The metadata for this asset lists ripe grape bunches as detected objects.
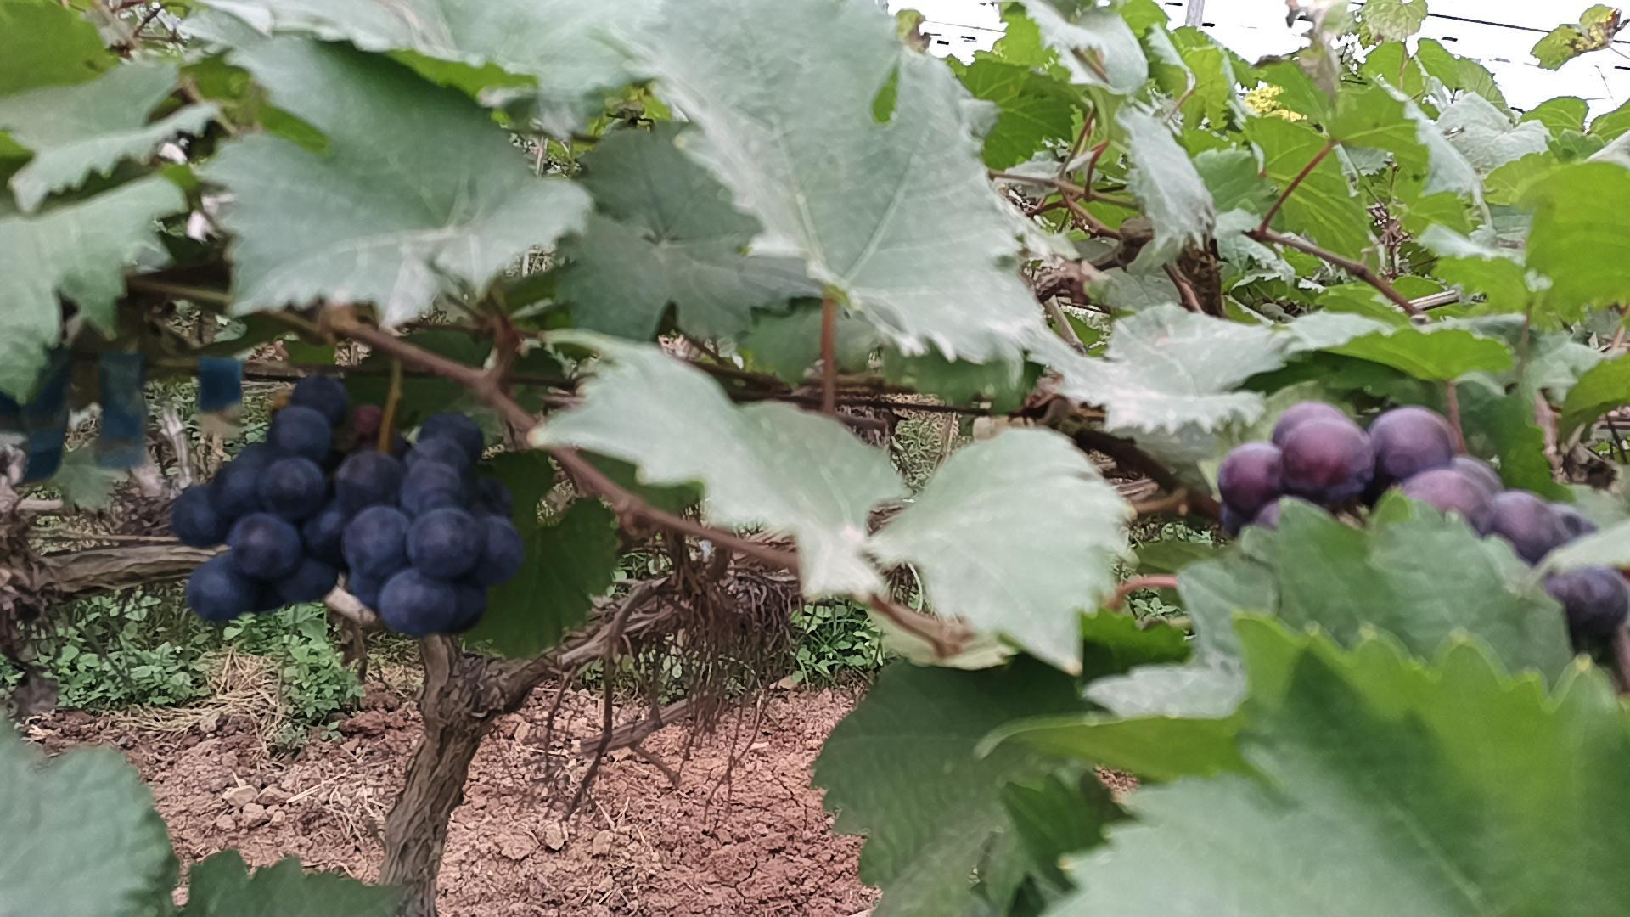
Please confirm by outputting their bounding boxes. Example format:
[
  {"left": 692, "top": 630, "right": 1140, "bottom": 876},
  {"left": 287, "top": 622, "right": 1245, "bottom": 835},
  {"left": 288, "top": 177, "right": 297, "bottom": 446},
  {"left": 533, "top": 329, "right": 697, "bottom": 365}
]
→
[
  {"left": 171, "top": 376, "right": 522, "bottom": 636},
  {"left": 1218, "top": 402, "right": 1596, "bottom": 565}
]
